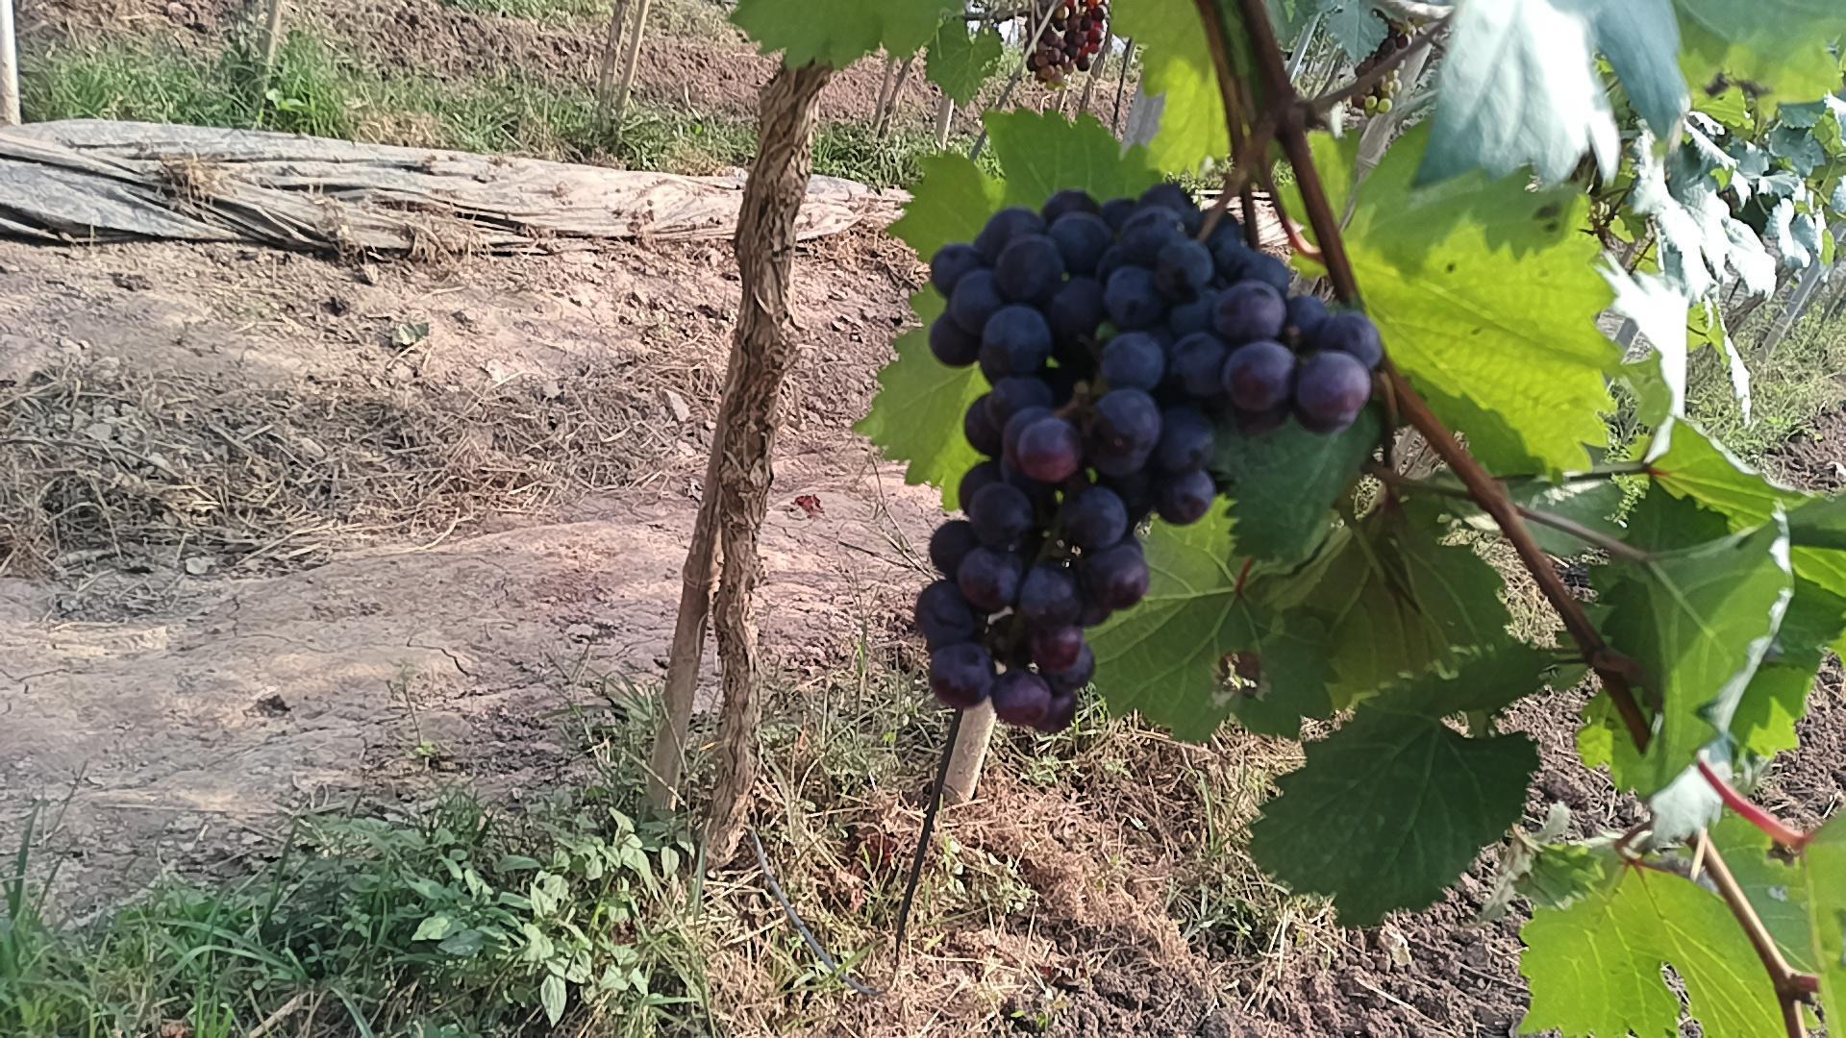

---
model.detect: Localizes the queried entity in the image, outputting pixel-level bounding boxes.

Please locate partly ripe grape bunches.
[1348,18,1412,116]
[1026,0,1109,86]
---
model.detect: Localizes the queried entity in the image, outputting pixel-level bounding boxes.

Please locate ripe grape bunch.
[916,185,1381,731]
